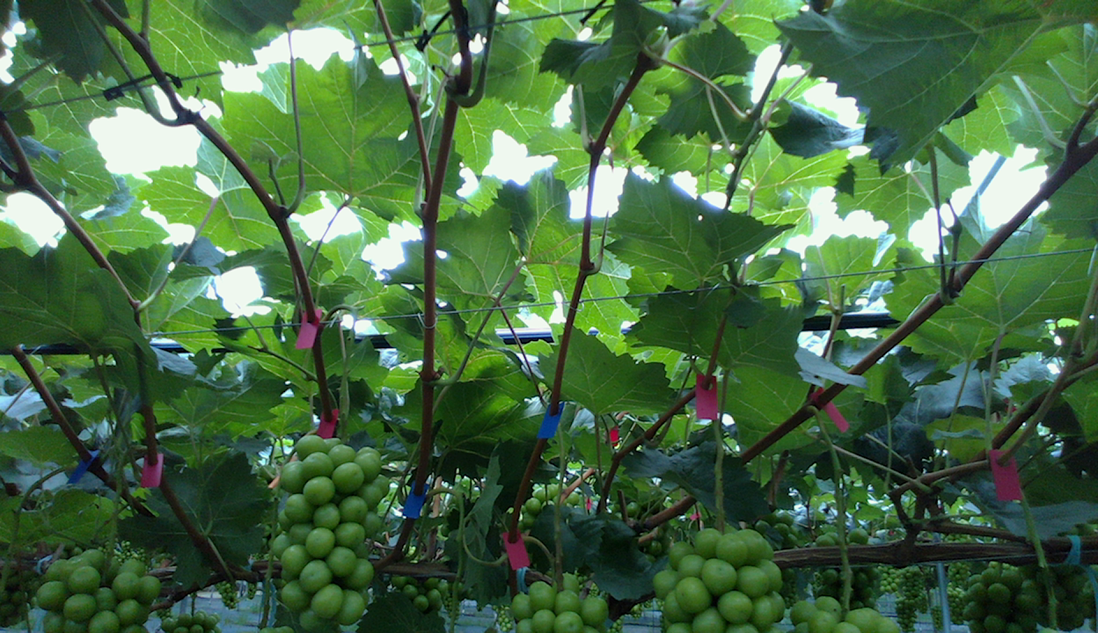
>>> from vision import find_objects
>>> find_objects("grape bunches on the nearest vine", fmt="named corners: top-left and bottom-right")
top-left (510, 574), bottom-right (608, 632)
top-left (34, 549), bottom-right (161, 631)
top-left (273, 433), bottom-right (392, 631)
top-left (650, 527), bottom-right (786, 632)
top-left (790, 597), bottom-right (900, 632)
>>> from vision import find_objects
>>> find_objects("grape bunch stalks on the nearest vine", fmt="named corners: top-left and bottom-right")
top-left (104, 446), bottom-right (128, 585)
top-left (814, 410), bottom-right (853, 623)
top-left (713, 423), bottom-right (724, 534)
top-left (554, 426), bottom-right (567, 590)
top-left (323, 306), bottom-right (362, 440)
